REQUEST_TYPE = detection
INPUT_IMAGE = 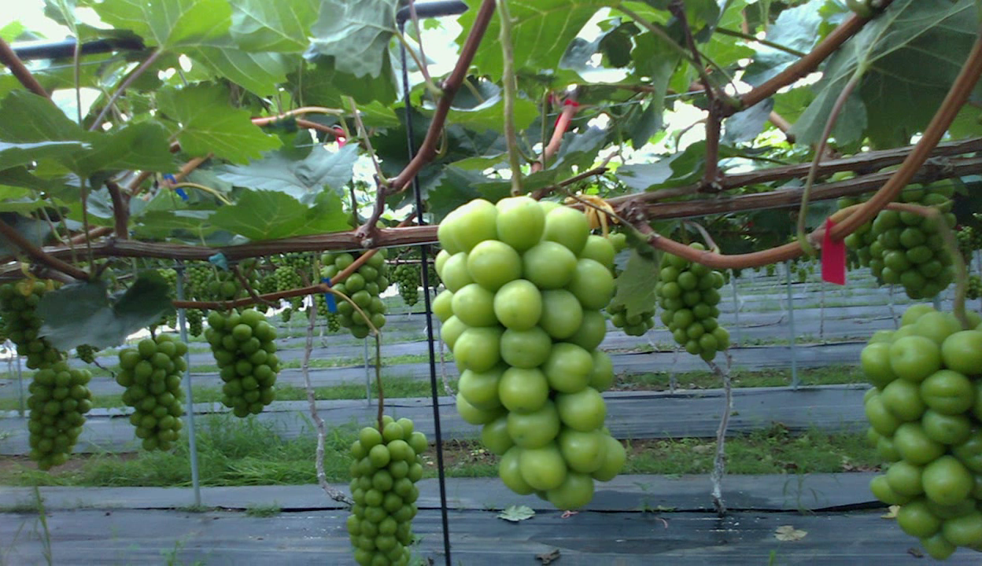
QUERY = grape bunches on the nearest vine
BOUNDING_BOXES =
[858,304,980,560]
[430,196,628,510]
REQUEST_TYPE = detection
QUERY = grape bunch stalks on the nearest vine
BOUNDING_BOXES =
[827,202,969,323]
[497,2,522,193]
